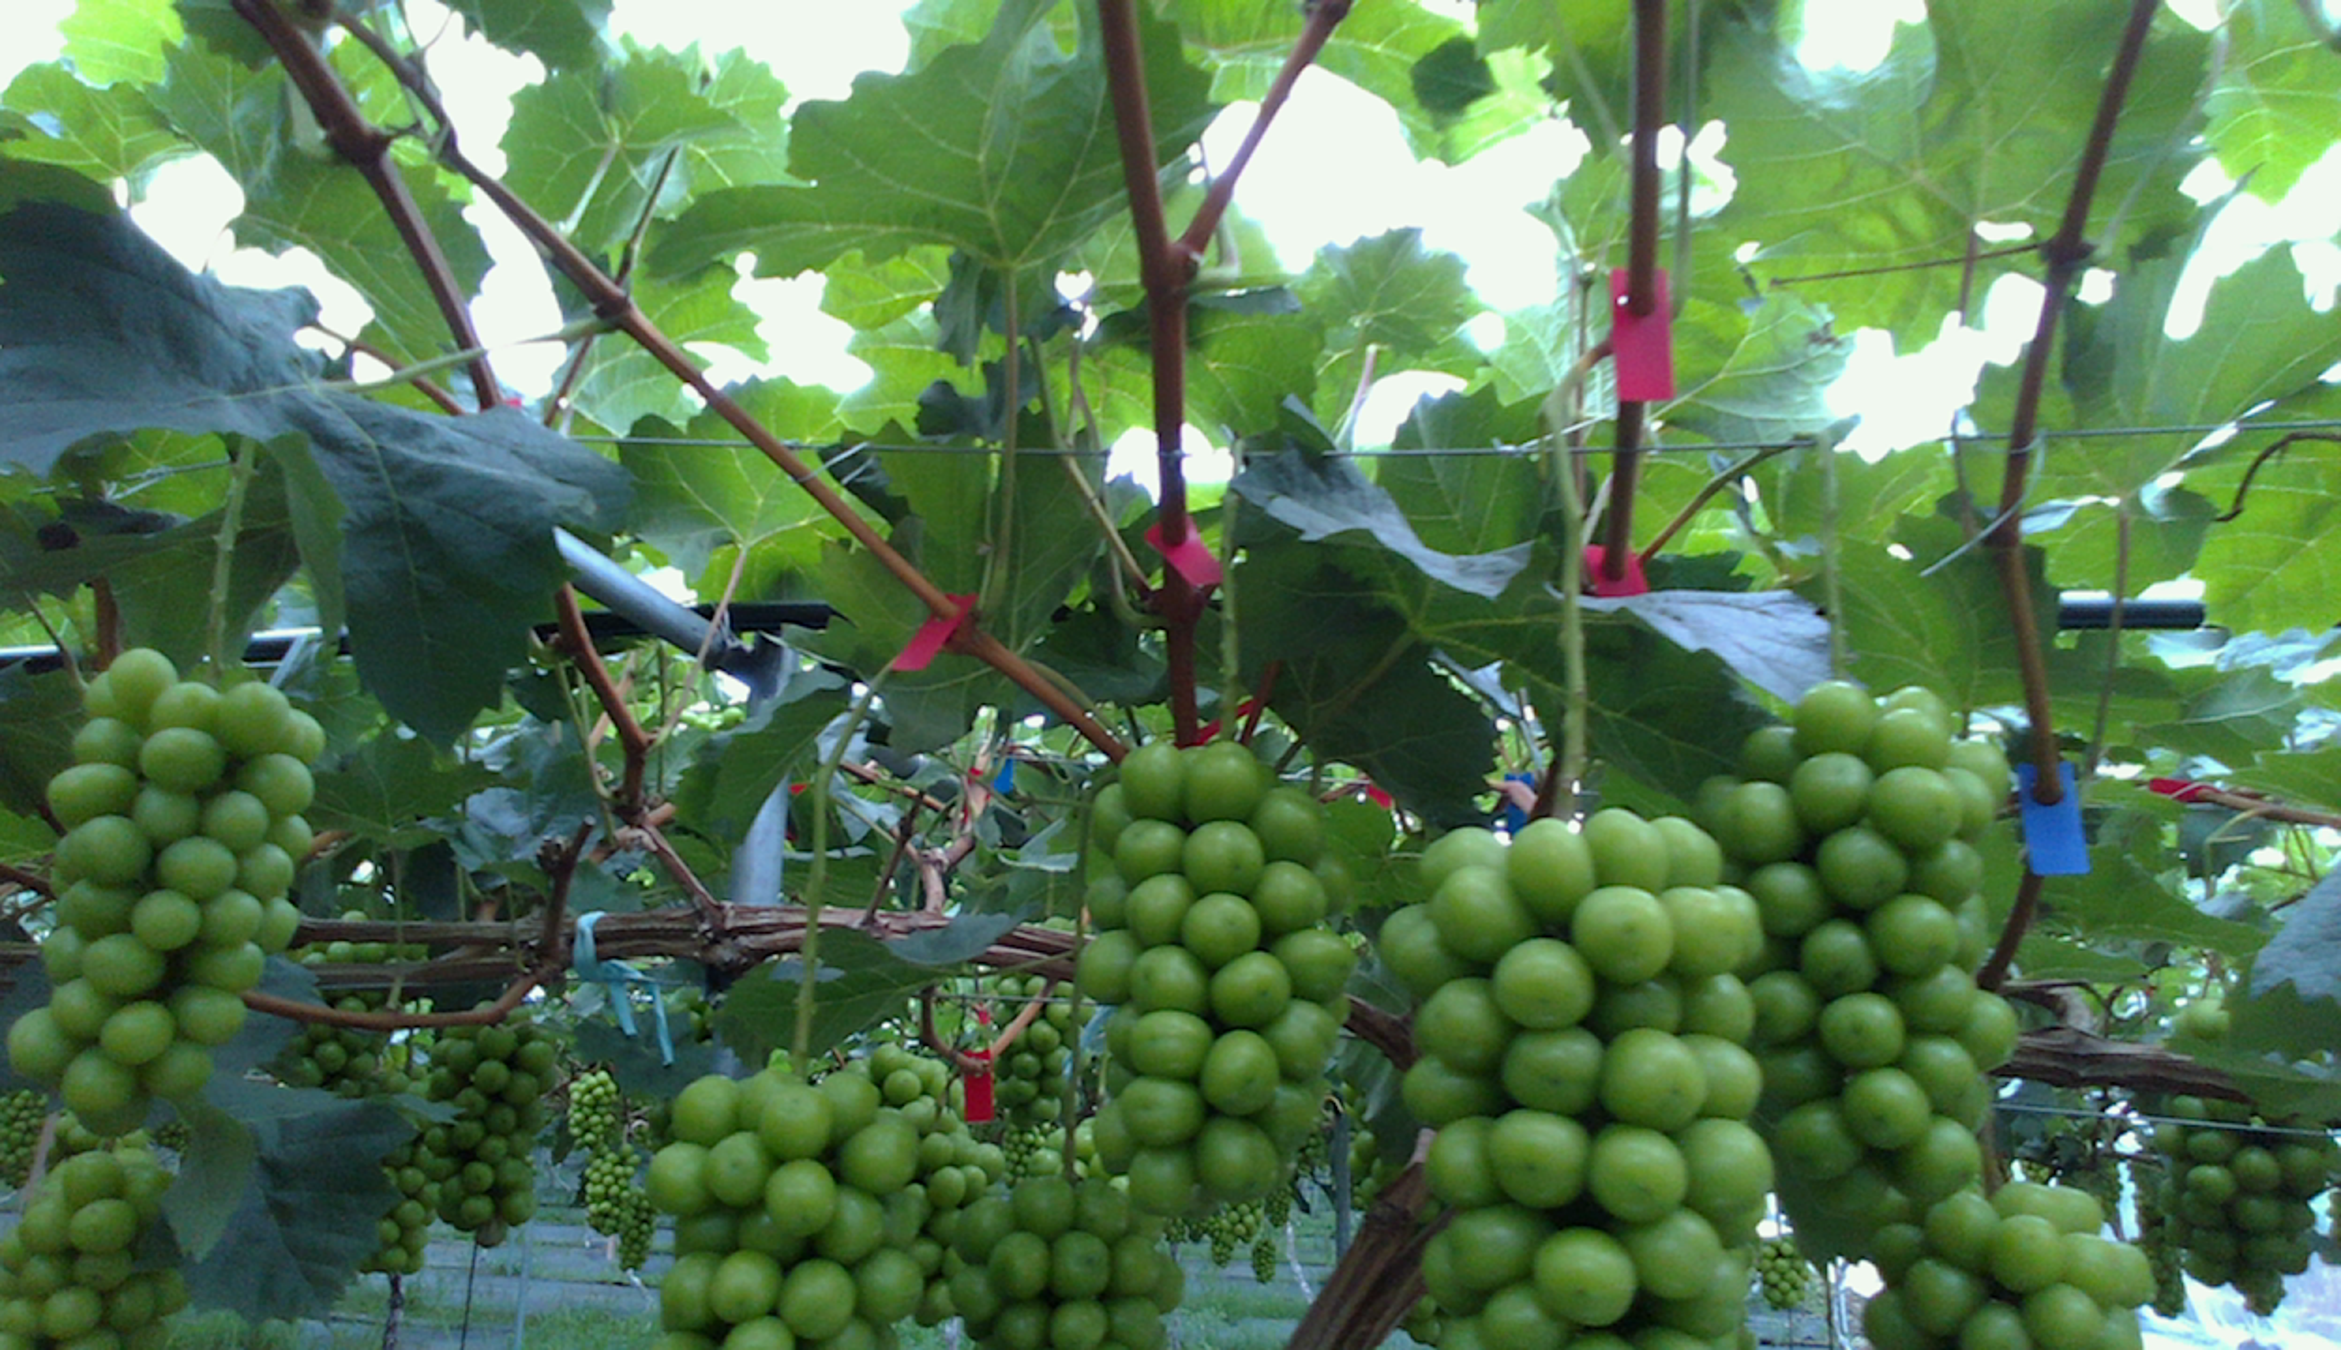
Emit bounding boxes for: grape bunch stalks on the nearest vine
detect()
[1979,1114,2003,1198]
[1816,442,1848,681]
[1219,491,1244,741]
[204,437,257,692]
[1546,409,1589,825]
[1062,769,1118,1185]
[786,666,891,1078]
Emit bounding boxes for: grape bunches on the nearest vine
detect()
[6,649,328,1138]
[947,1177,1186,1348]
[1377,806,1775,1348]
[1690,679,2020,1226]
[1861,1181,2153,1348]
[1077,739,1356,1217]
[642,1069,925,1348]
